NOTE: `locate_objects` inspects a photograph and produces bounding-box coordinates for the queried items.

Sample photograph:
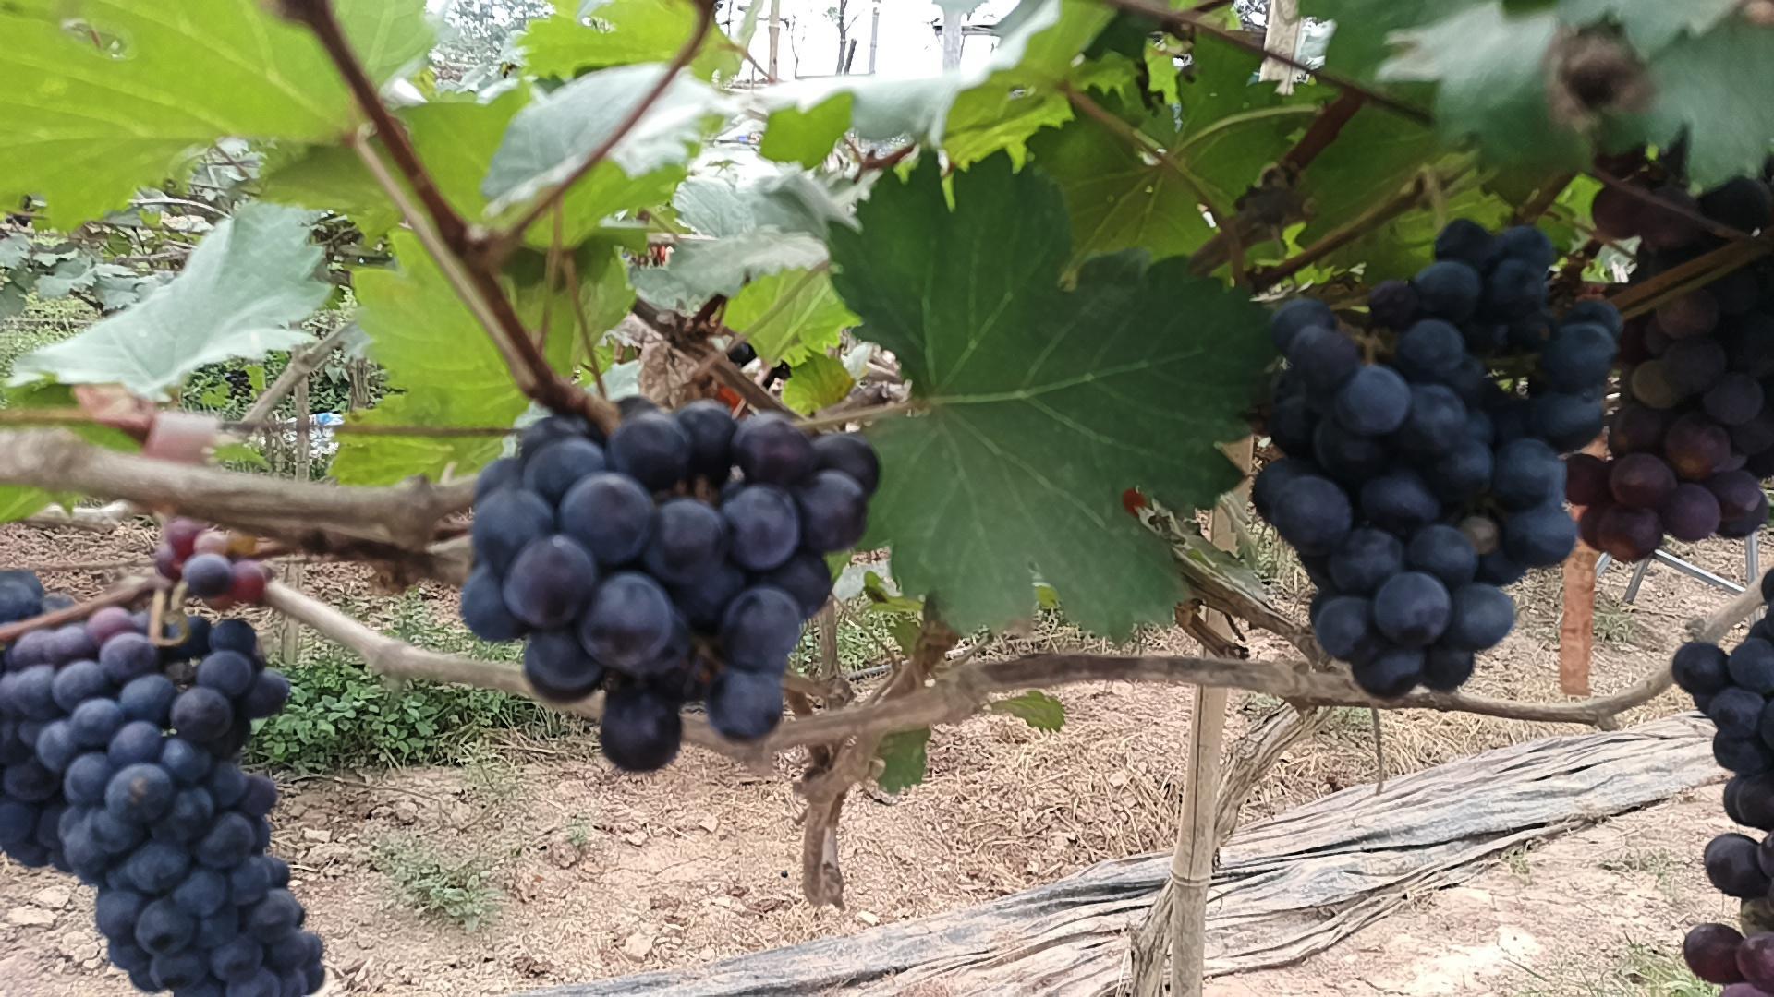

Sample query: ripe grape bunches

[0,572,324,996]
[1568,124,1773,560]
[152,517,276,608]
[1255,220,1621,687]
[1672,570,1773,996]
[461,397,879,769]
